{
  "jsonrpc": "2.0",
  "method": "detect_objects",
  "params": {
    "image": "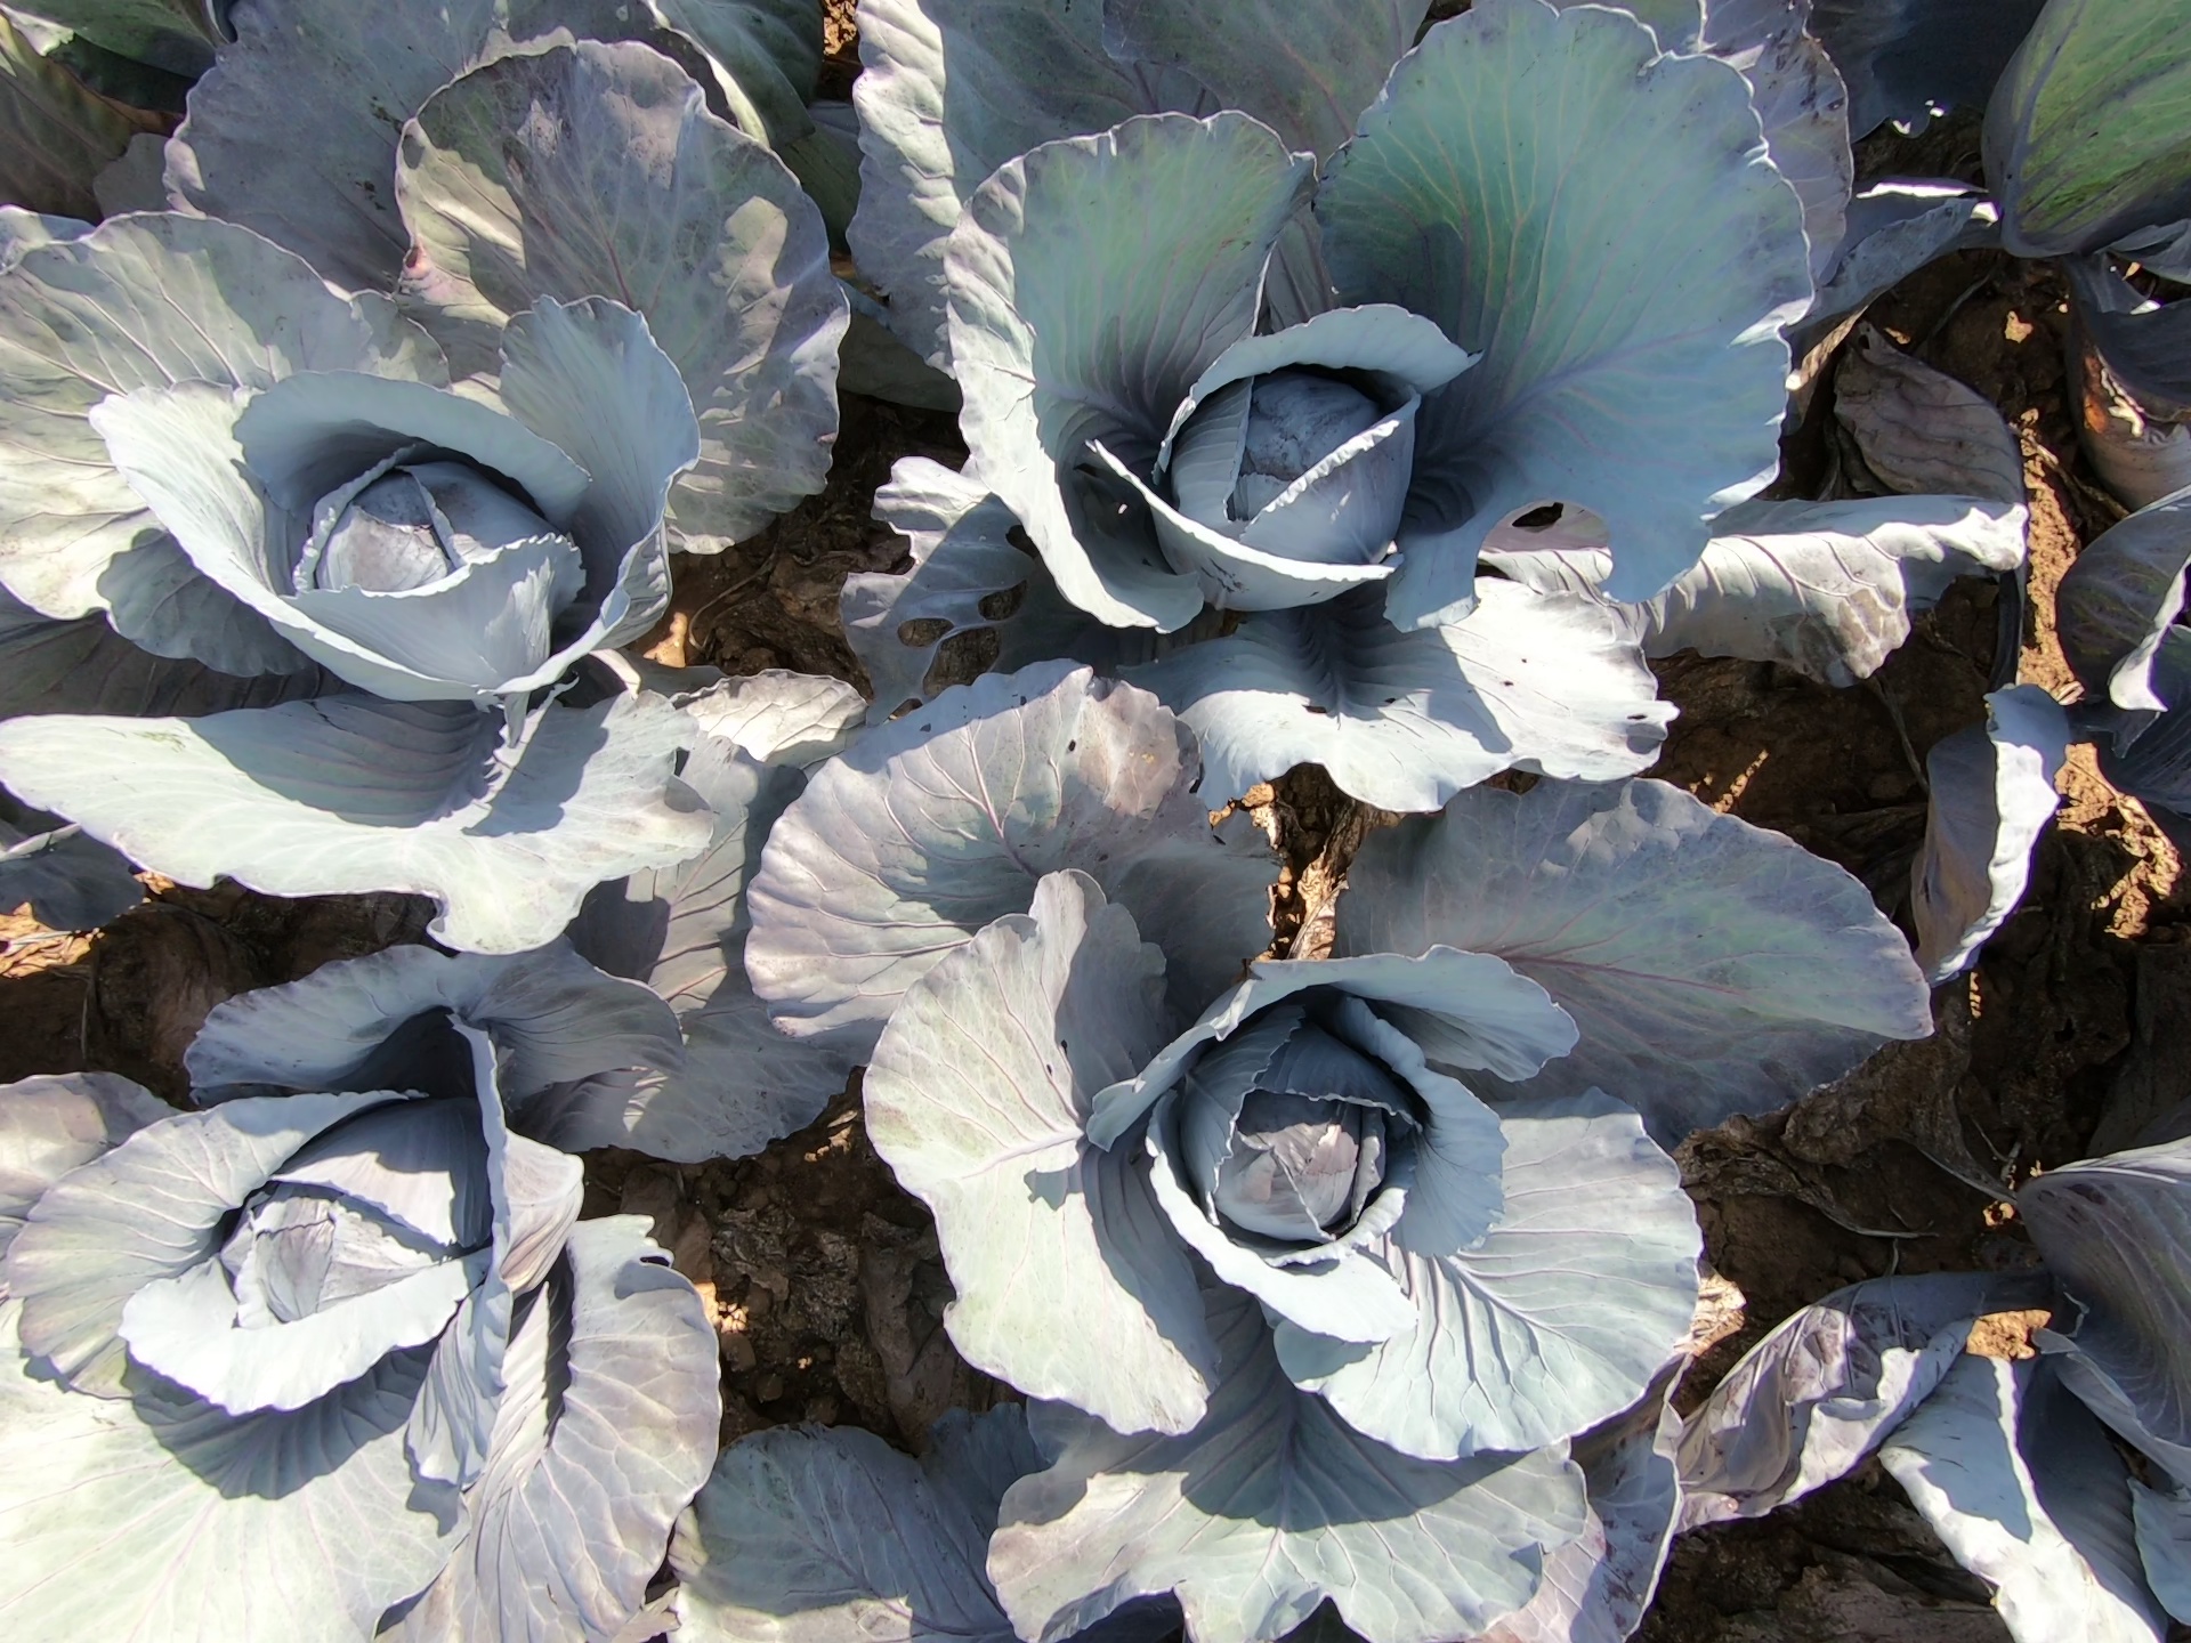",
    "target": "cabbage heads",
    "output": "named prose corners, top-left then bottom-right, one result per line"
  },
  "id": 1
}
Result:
top-left (1181, 383), bottom-right (1399, 567)
top-left (304, 460), bottom-right (549, 655)
top-left (1181, 1026), bottom-right (1390, 1236)
top-left (245, 1112), bottom-right (533, 1340)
